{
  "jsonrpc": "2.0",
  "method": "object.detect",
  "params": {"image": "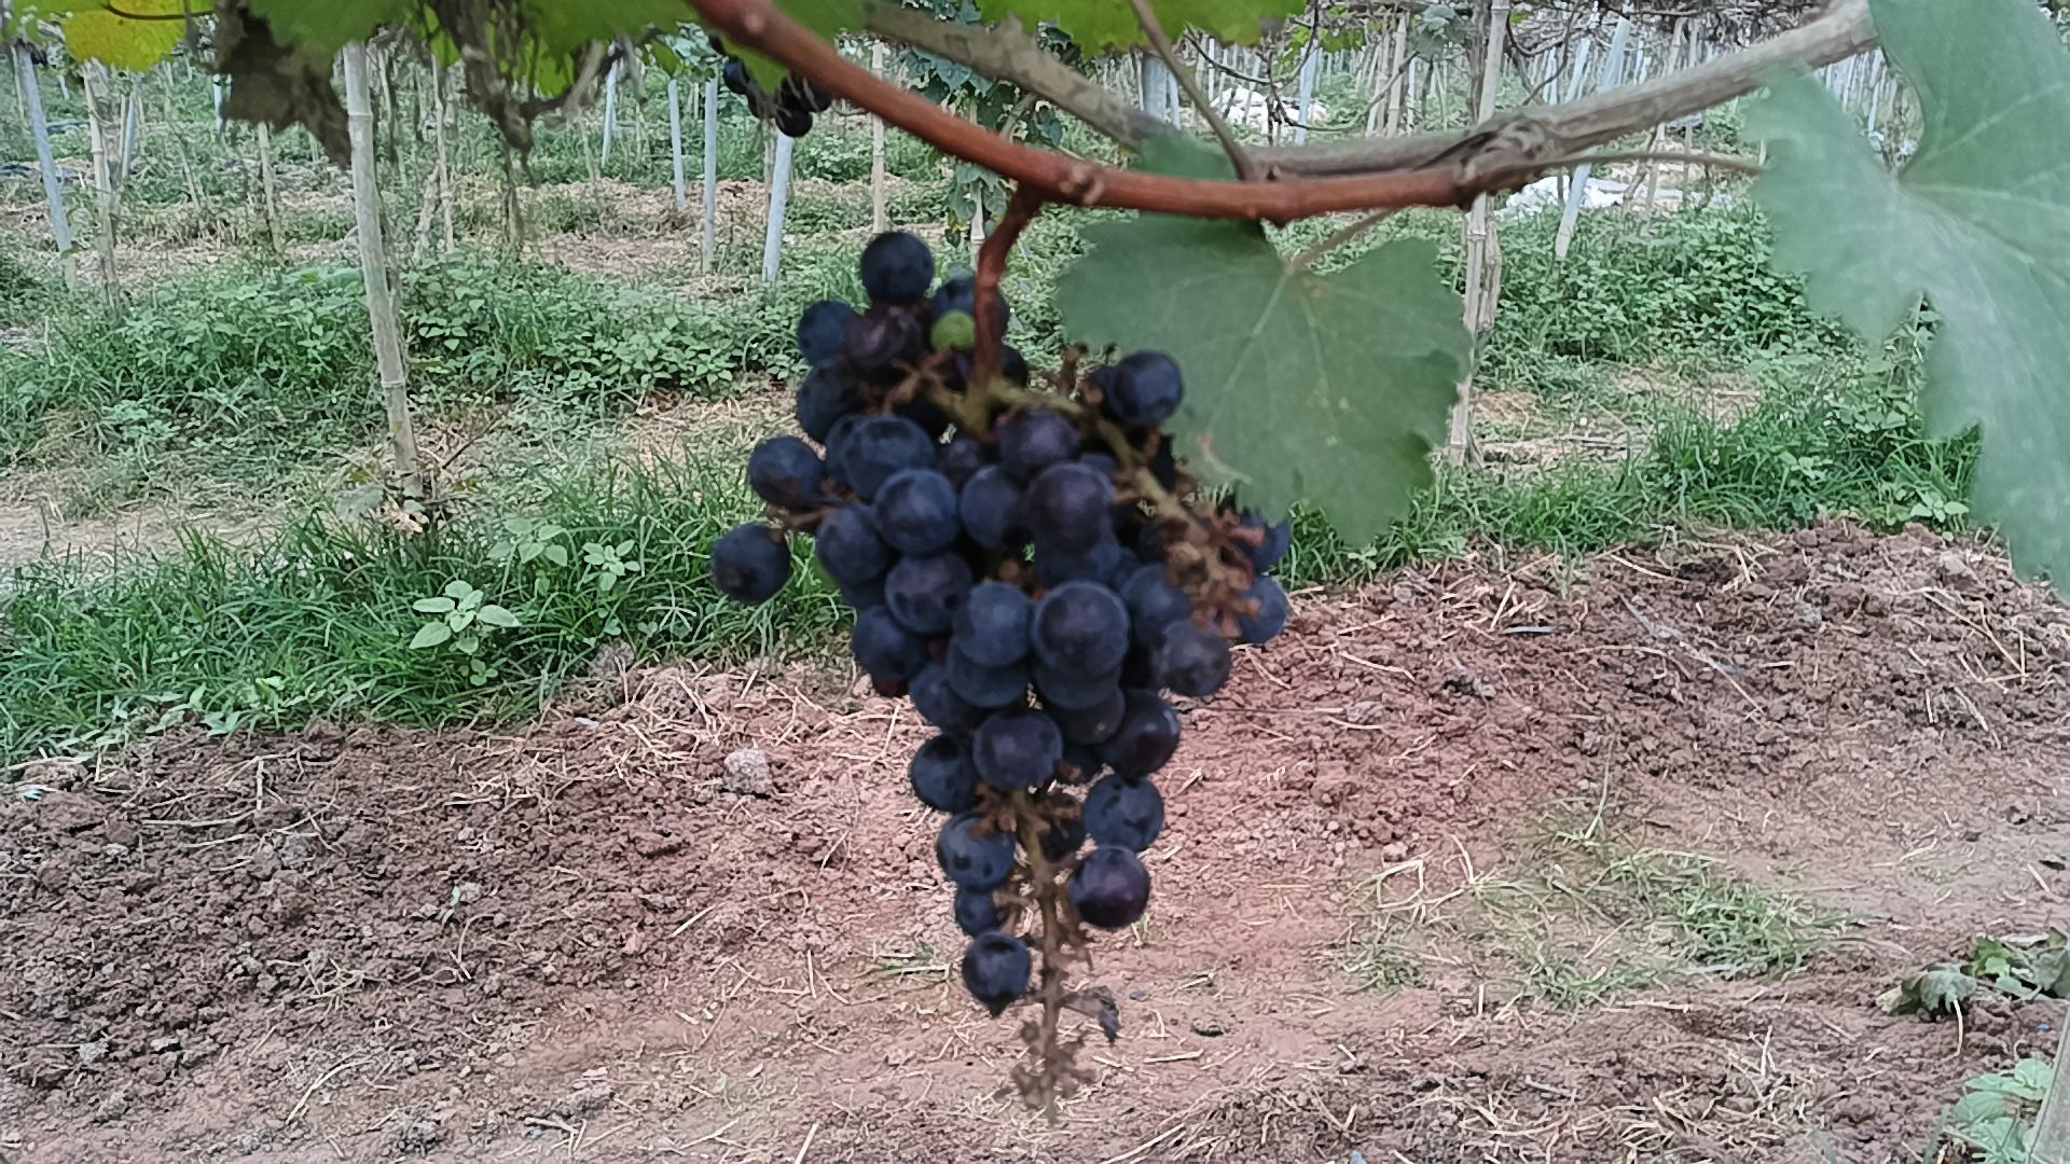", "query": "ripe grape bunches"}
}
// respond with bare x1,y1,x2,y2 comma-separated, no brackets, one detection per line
710,38,833,139
706,232,1293,1014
